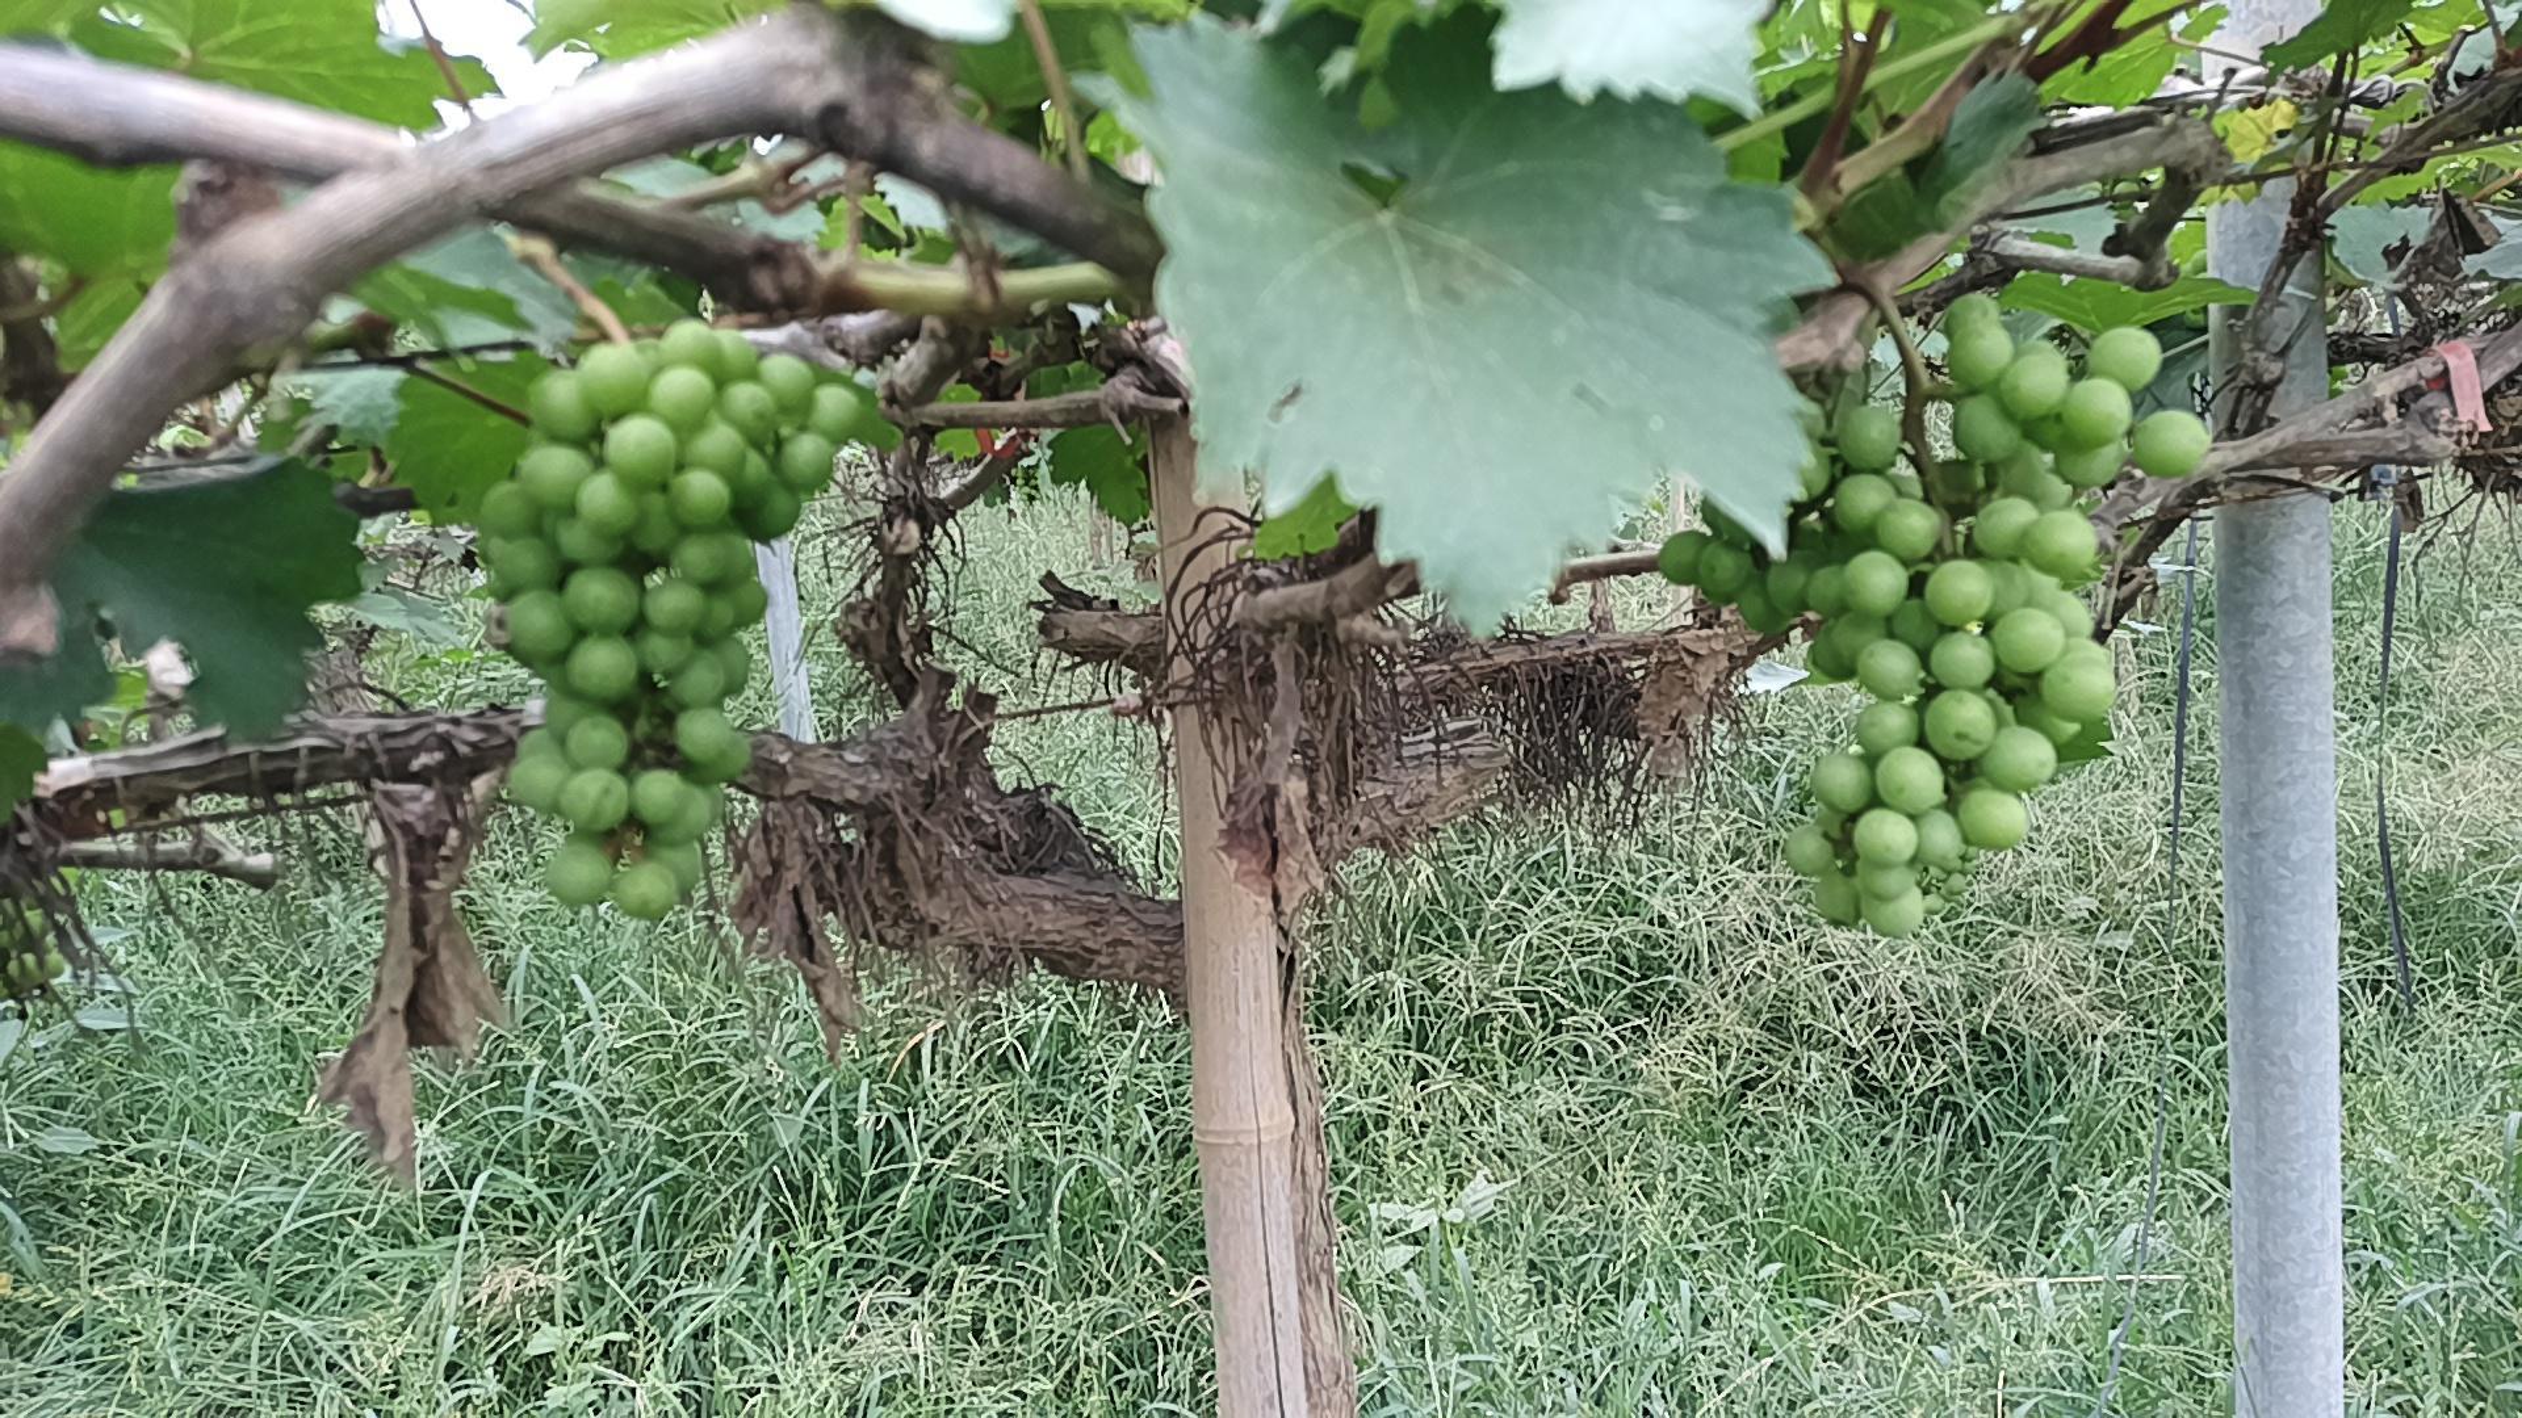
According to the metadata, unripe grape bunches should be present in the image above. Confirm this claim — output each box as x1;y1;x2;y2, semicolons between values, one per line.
1662;291;2208;936
478;322;864;919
